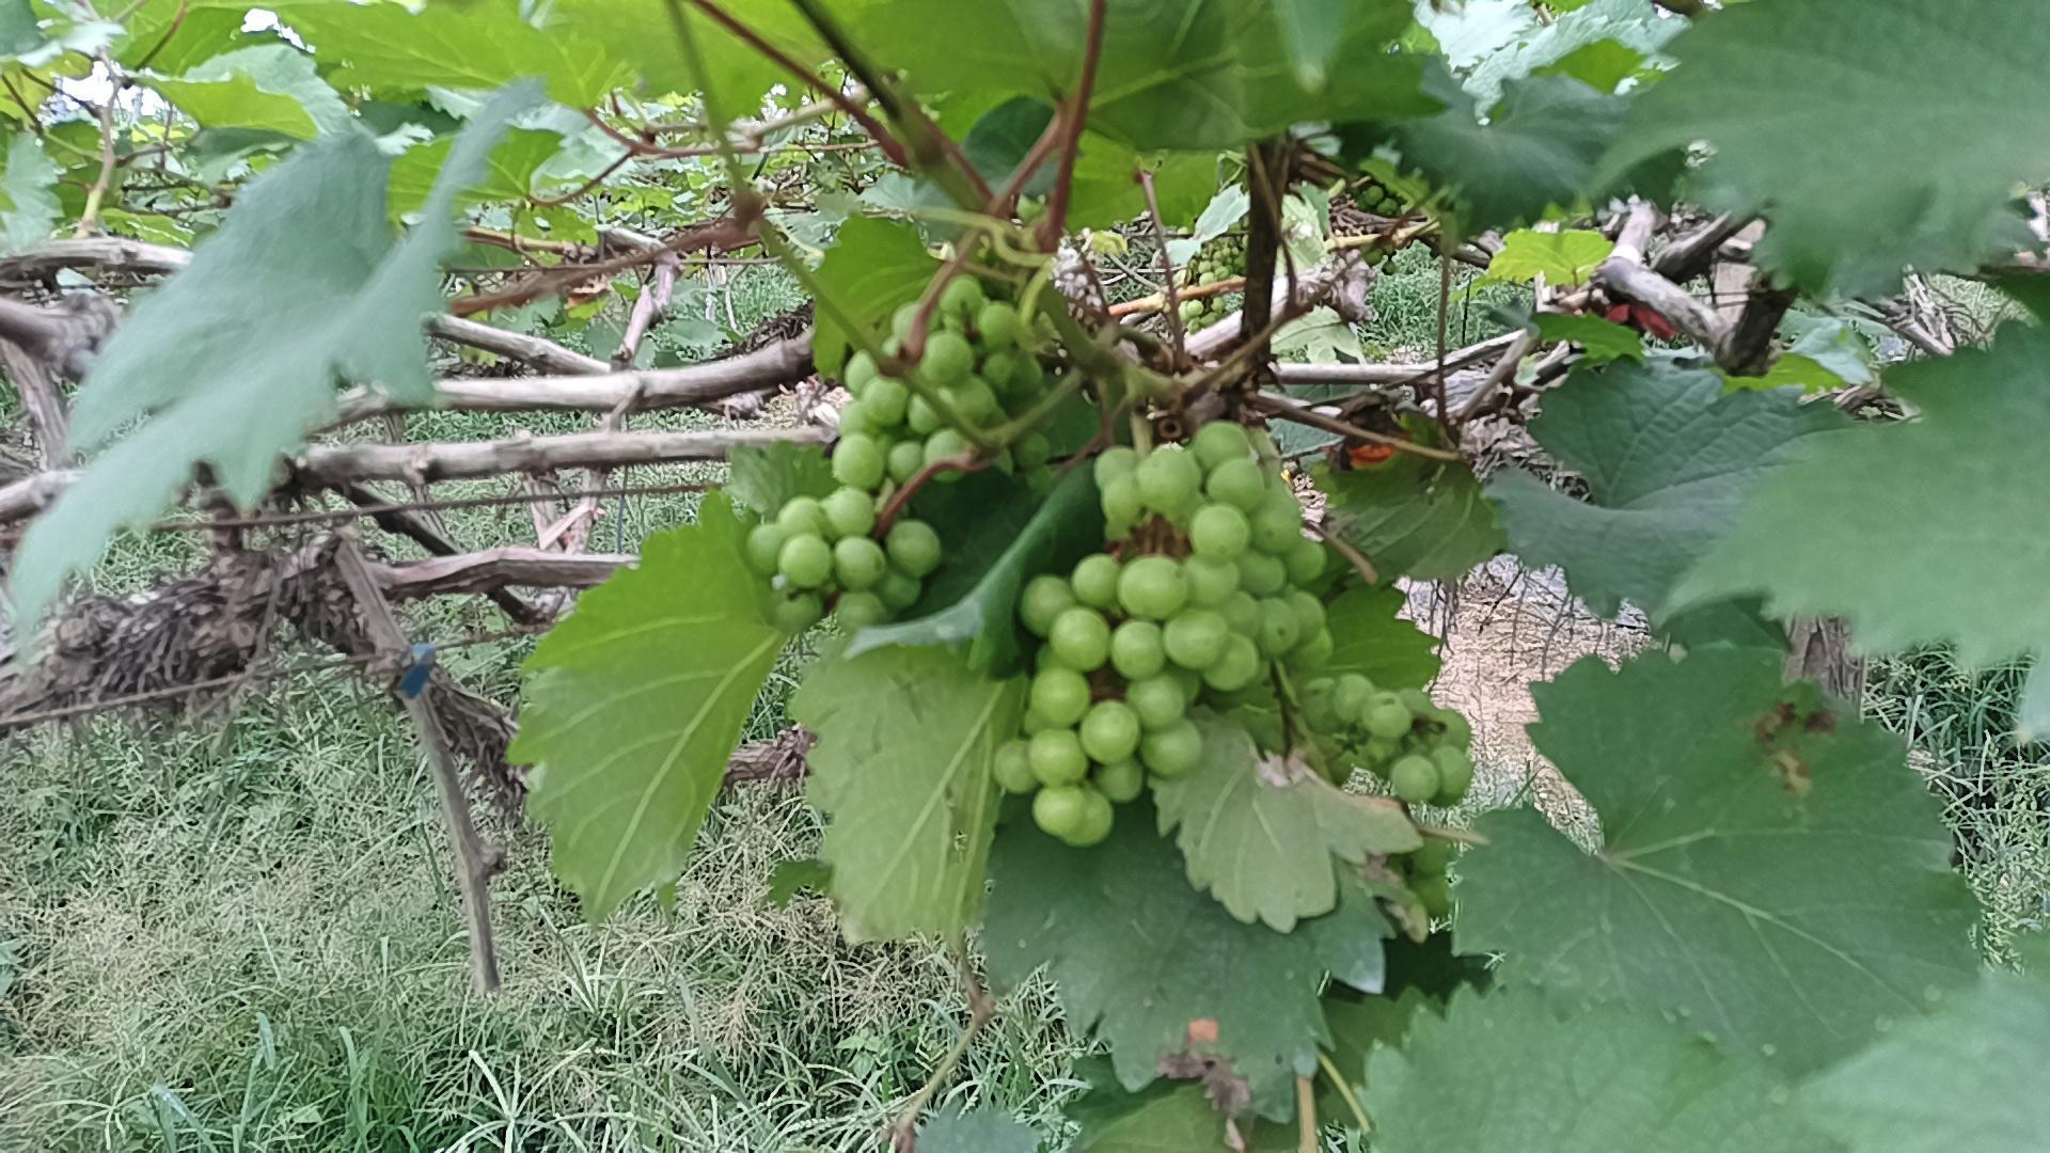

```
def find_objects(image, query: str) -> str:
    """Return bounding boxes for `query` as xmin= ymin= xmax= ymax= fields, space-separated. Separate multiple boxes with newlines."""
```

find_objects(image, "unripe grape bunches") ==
xmin=1218 ymin=673 xmax=1469 ymax=915
xmin=744 ymin=279 xmax=1050 ymax=630
xmin=995 ymin=423 xmax=1327 ymax=844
